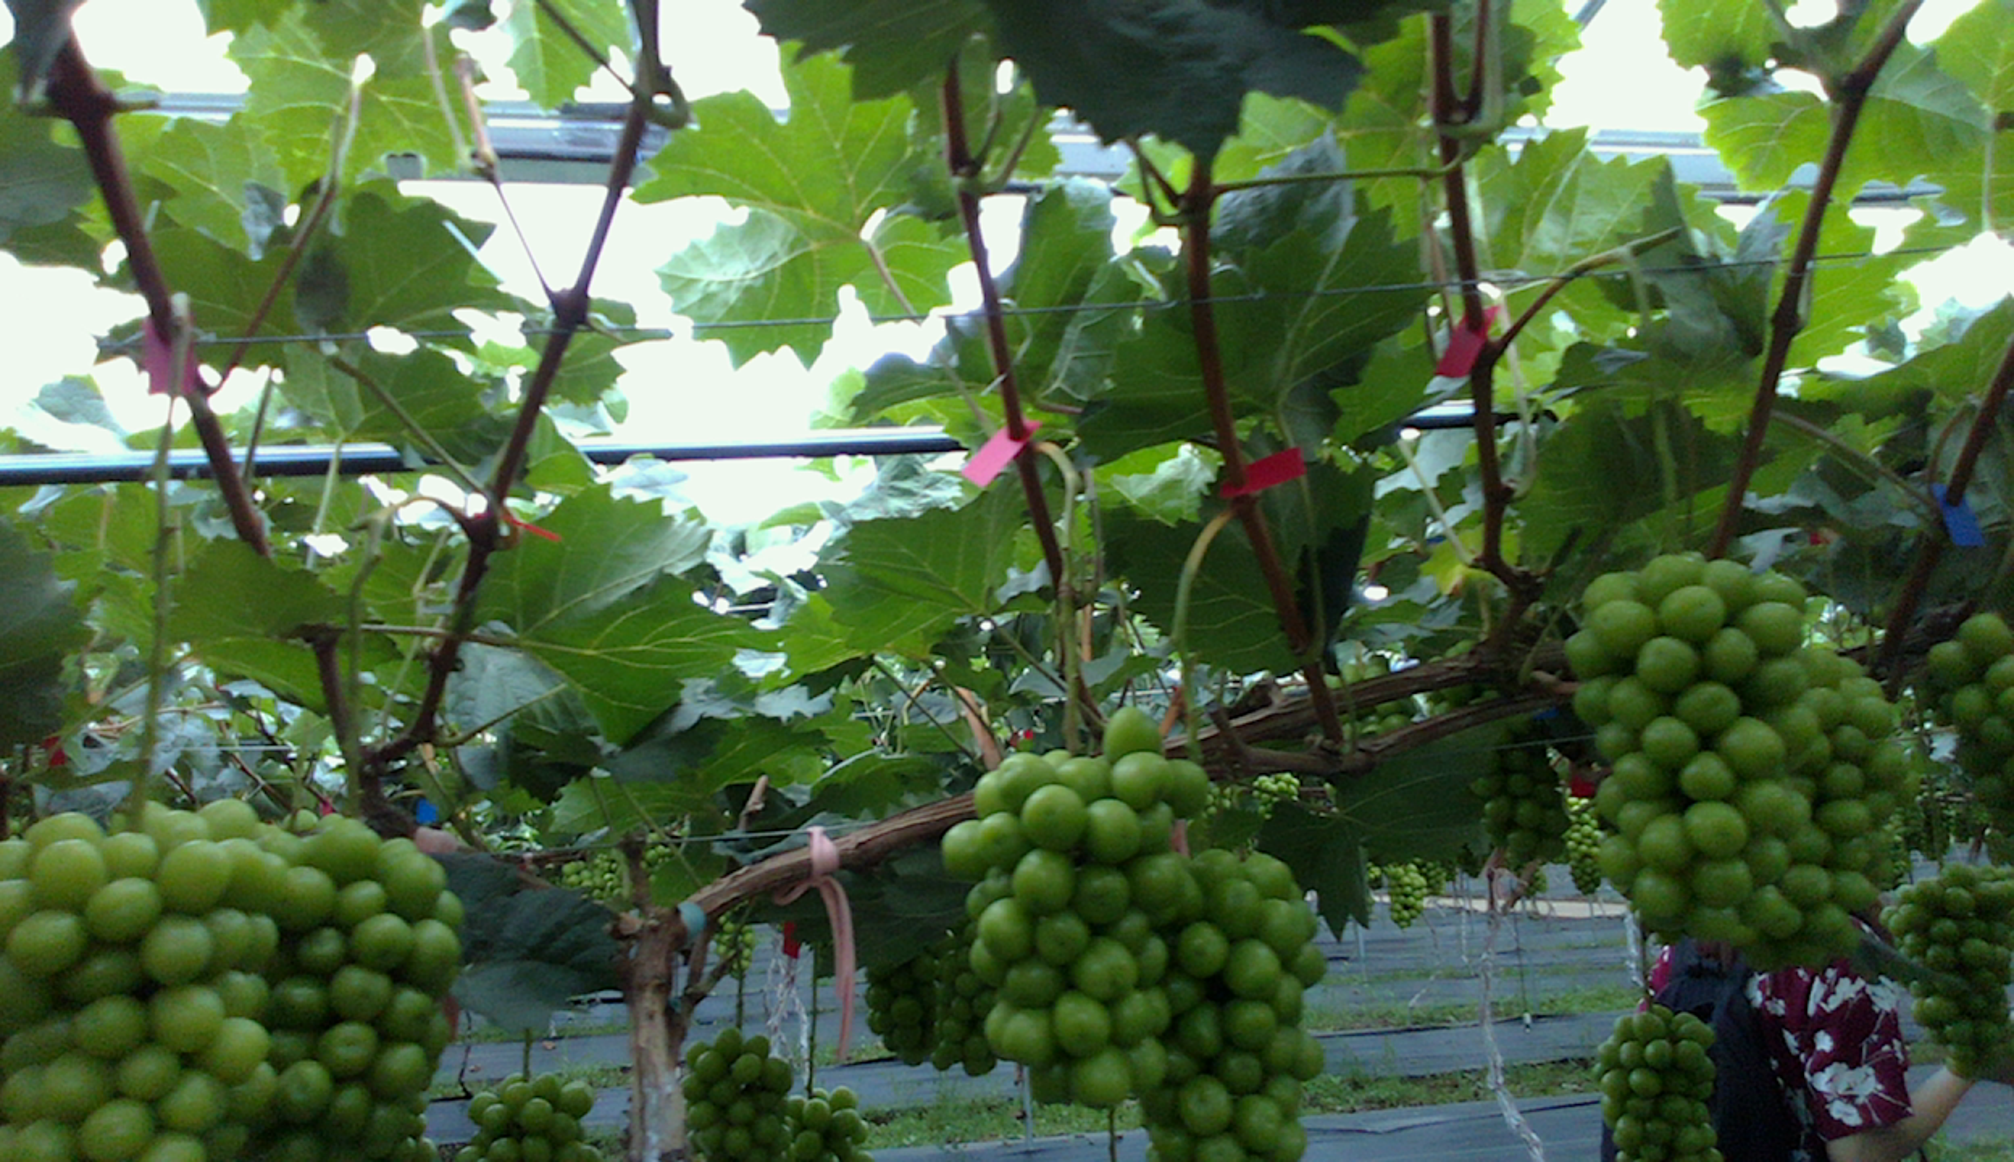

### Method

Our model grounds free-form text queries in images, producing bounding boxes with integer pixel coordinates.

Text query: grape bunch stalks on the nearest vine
[342,495,468,817]
[1033,441,1081,755]
[123,290,192,831]
[1493,226,1682,549]
[1173,504,1238,762]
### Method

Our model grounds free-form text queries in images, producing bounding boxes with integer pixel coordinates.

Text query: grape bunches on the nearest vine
[228,812,468,1160]
[938,704,1210,1110]
[0,800,289,1160]
[1561,552,1825,949]
[1744,647,1919,975]
[1139,849,1328,1160]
